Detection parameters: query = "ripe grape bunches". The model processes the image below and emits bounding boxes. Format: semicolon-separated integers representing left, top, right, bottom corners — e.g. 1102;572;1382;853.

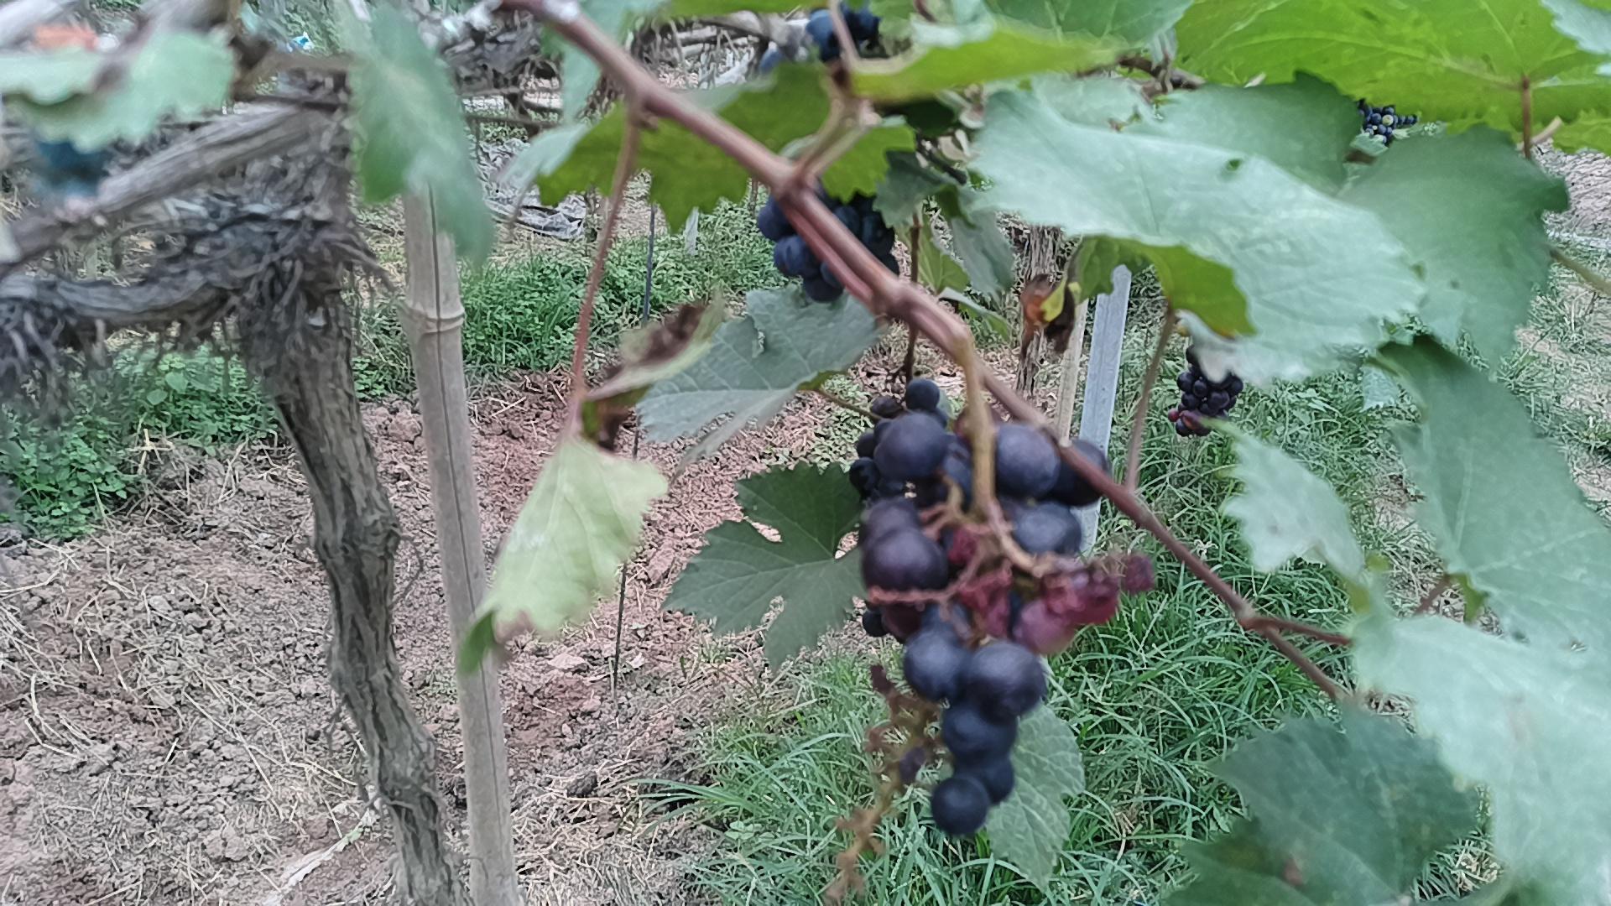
757;0;896;303
848;378;1153;836
1168;345;1244;436
1358;99;1418;145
